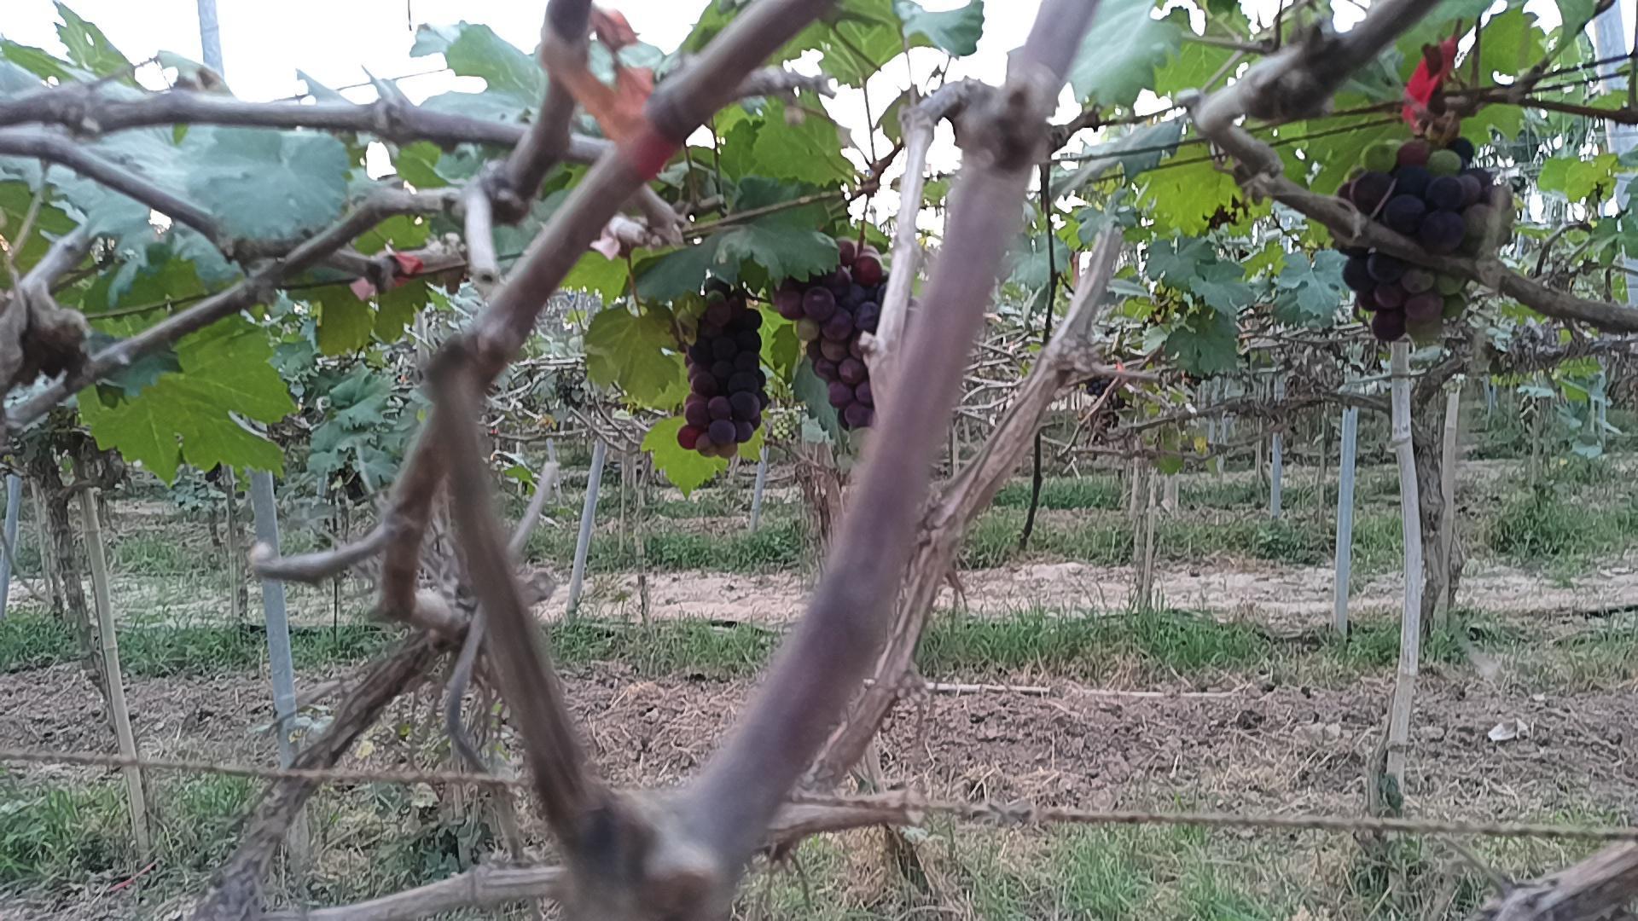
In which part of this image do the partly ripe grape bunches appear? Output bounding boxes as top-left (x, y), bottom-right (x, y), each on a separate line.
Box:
top-left (1329, 137), bottom-right (1517, 341)
top-left (775, 239), bottom-right (888, 430)
top-left (676, 277), bottom-right (769, 460)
